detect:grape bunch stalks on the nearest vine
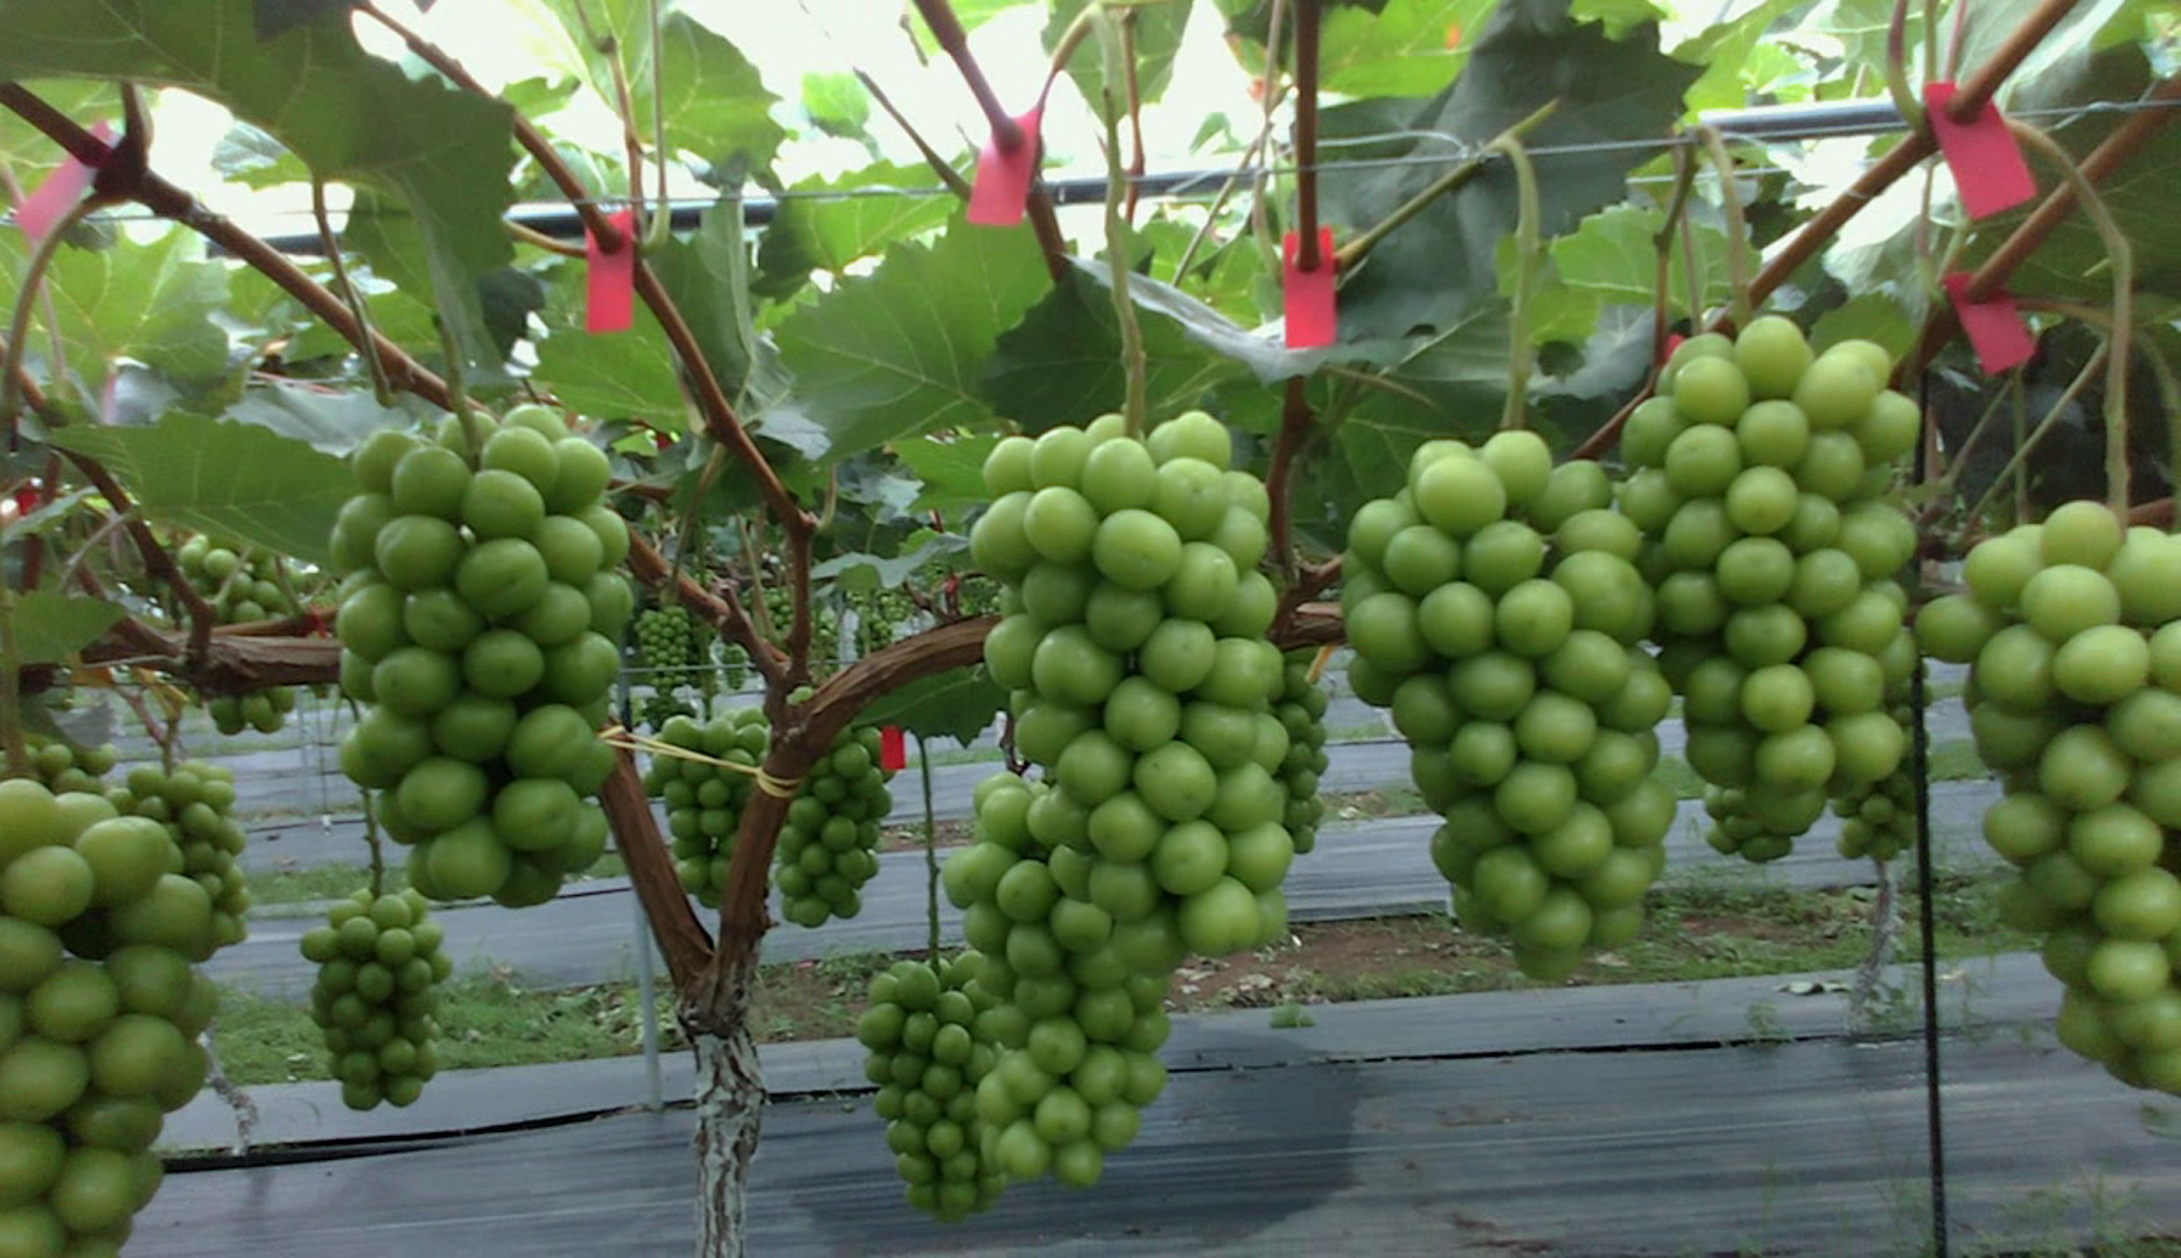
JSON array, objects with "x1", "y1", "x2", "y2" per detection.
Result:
[
  {"x1": 2004, "y1": 117, "x2": 2130, "y2": 521},
  {"x1": 1494, "y1": 136, "x2": 1538, "y2": 430},
  {"x1": 1031, "y1": 3, "x2": 1143, "y2": 439},
  {"x1": 1693, "y1": 124, "x2": 1753, "y2": 334},
  {"x1": 432, "y1": 309, "x2": 481, "y2": 468}
]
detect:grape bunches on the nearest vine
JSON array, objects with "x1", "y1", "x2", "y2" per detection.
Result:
[
  {"x1": 944, "y1": 769, "x2": 1167, "y2": 1183},
  {"x1": 972, "y1": 407, "x2": 1291, "y2": 982},
  {"x1": 330, "y1": 405, "x2": 631, "y2": 907},
  {"x1": 1917, "y1": 501, "x2": 2179, "y2": 1087},
  {"x1": 1344, "y1": 430, "x2": 1672, "y2": 982},
  {"x1": 0, "y1": 776, "x2": 215, "y2": 1253},
  {"x1": 1622, "y1": 316, "x2": 1921, "y2": 828}
]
